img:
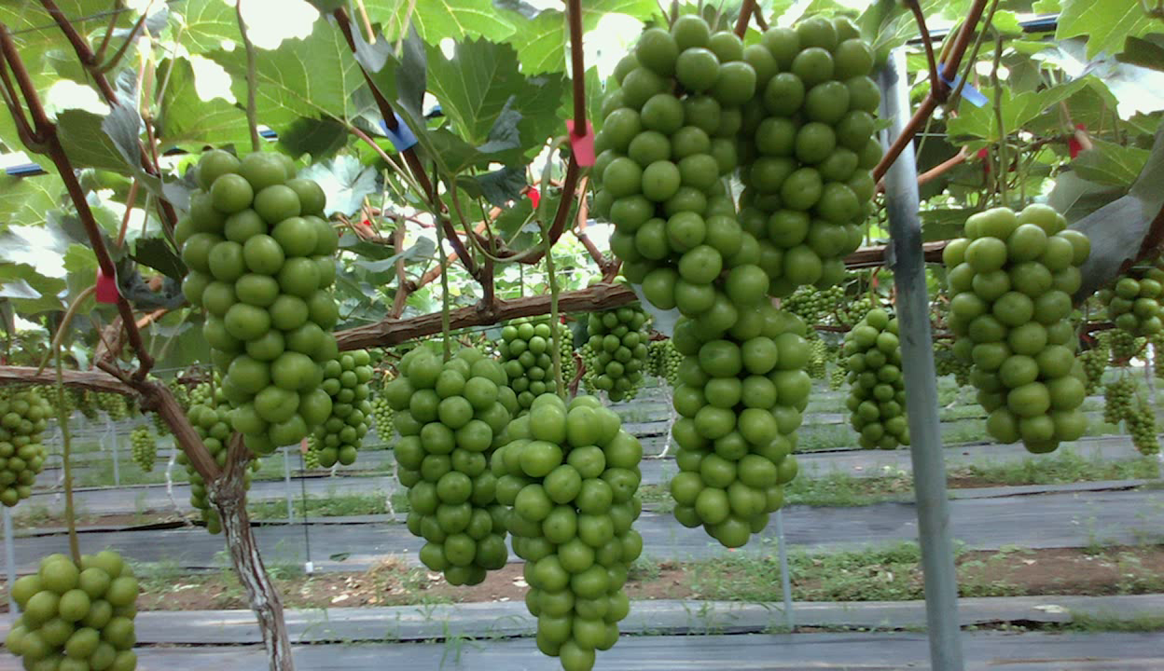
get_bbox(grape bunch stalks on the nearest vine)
[989,23,1009,207]
[754,2,769,31]
[51,282,97,571]
[235,0,260,152]
[431,160,450,363]
[668,0,679,33]
[537,134,569,405]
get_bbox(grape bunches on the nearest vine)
[941,202,1089,454]
[6,551,139,670]
[735,16,881,297]
[173,150,339,456]
[491,392,644,670]
[670,302,811,547]
[592,14,769,332]
[387,344,519,587]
